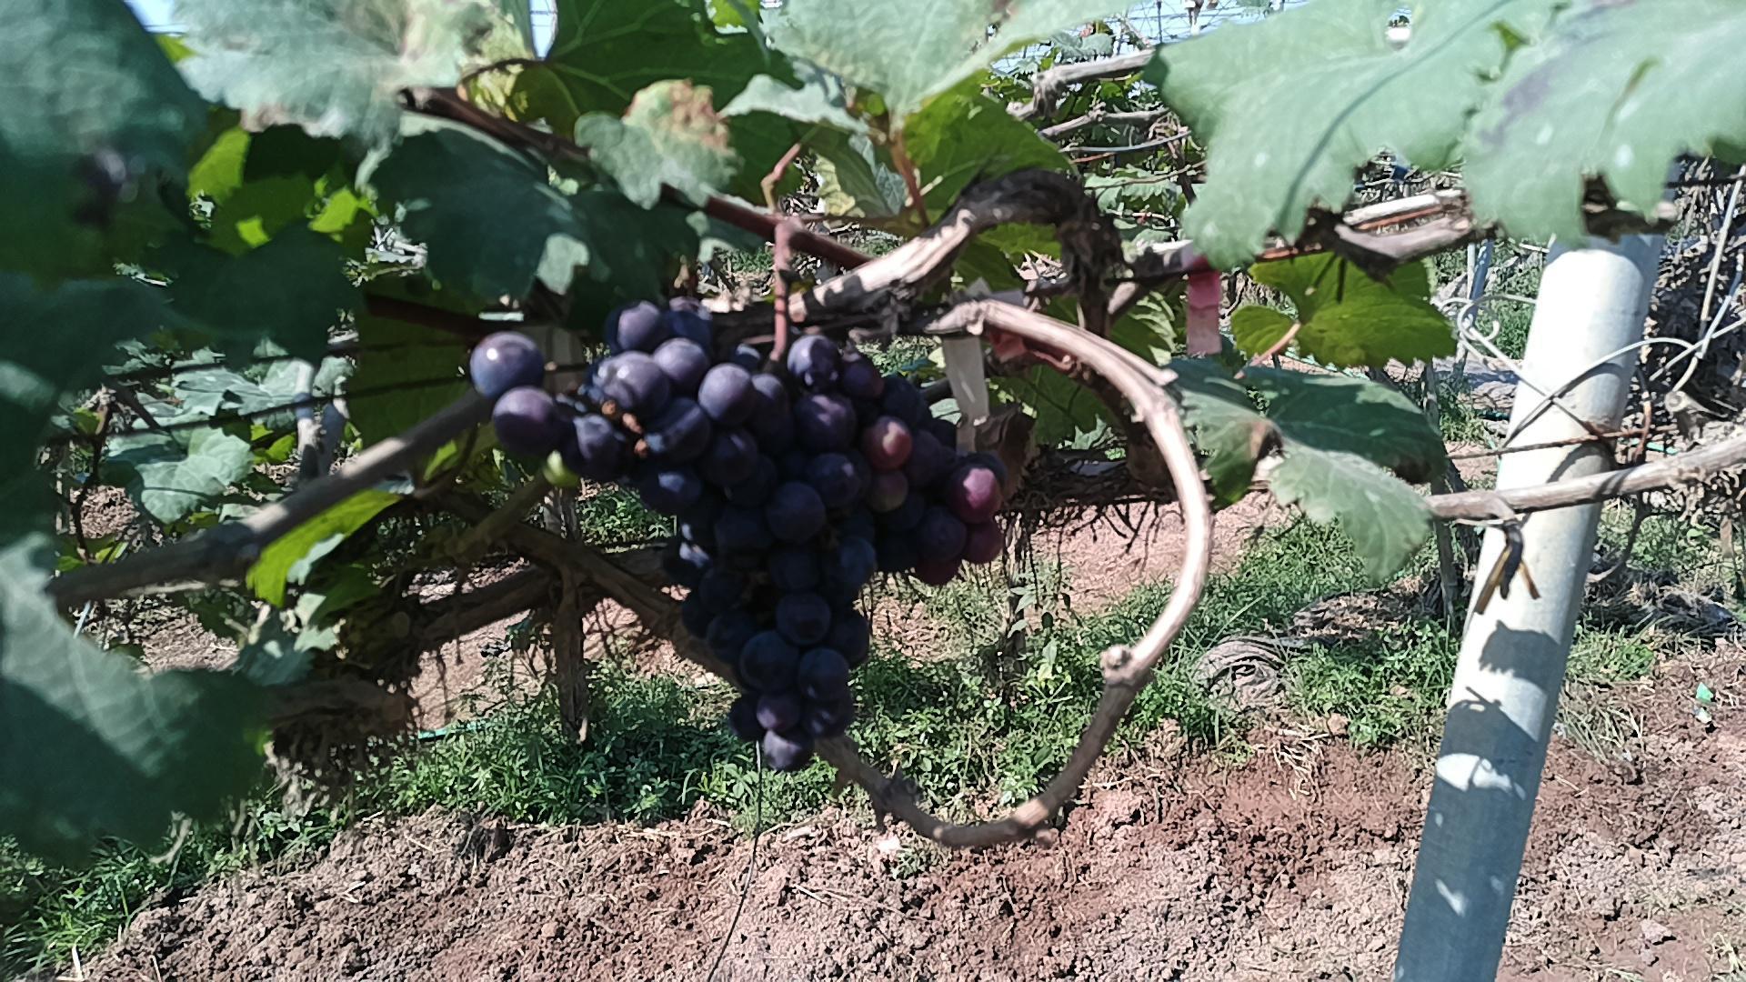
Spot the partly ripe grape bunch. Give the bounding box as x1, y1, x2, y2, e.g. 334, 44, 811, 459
472, 298, 1006, 770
